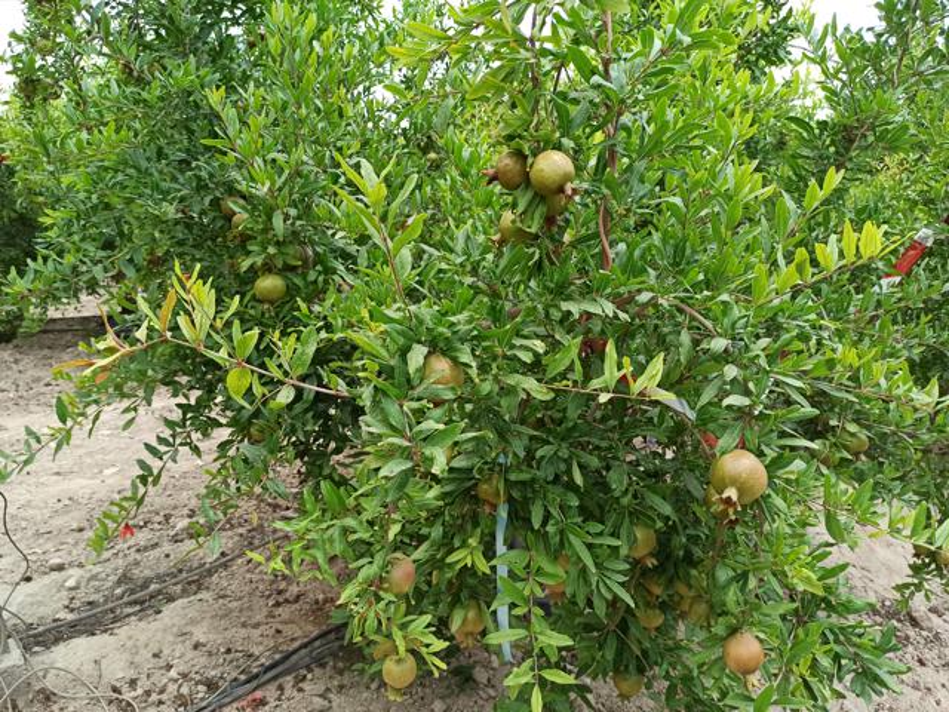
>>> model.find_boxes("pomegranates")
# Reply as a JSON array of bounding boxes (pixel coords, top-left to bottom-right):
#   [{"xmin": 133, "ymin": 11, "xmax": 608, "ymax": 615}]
[
  {"xmin": 546, "ymin": 191, "xmax": 574, "ymax": 218},
  {"xmin": 486, "ymin": 209, "xmax": 513, "ymax": 251},
  {"xmin": 221, "ymin": 194, "xmax": 248, "ymax": 220},
  {"xmin": 476, "ymin": 473, "xmax": 501, "ymax": 513},
  {"xmin": 528, "ymin": 150, "xmax": 581, "ymax": 200},
  {"xmin": 614, "ymin": 672, "xmax": 644, "ymax": 705},
  {"xmin": 479, "ymin": 150, "xmax": 528, "ymax": 191},
  {"xmin": 709, "ymin": 448, "xmax": 770, "ymax": 516},
  {"xmin": 842, "ymin": 433, "xmax": 870, "ymax": 463},
  {"xmin": 721, "ymin": 629, "xmax": 765, "ymax": 696},
  {"xmin": 544, "ymin": 555, "xmax": 571, "ymax": 599},
  {"xmin": 641, "ymin": 580, "xmax": 663, "ymax": 605},
  {"xmin": 231, "ymin": 214, "xmax": 251, "ymax": 242},
  {"xmin": 675, "ymin": 581, "xmax": 695, "ymax": 616},
  {"xmin": 639, "ymin": 611, "xmax": 666, "ymax": 636},
  {"xmin": 381, "ymin": 653, "xmax": 417, "ymax": 702},
  {"xmin": 254, "ymin": 273, "xmax": 288, "ymax": 311},
  {"xmin": 384, "ymin": 555, "xmax": 417, "ymax": 596},
  {"xmin": 452, "ymin": 599, "xmax": 485, "ymax": 651},
  {"xmin": 426, "ymin": 355, "xmax": 466, "ymax": 384},
  {"xmin": 627, "ymin": 524, "xmax": 660, "ymax": 570}
]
